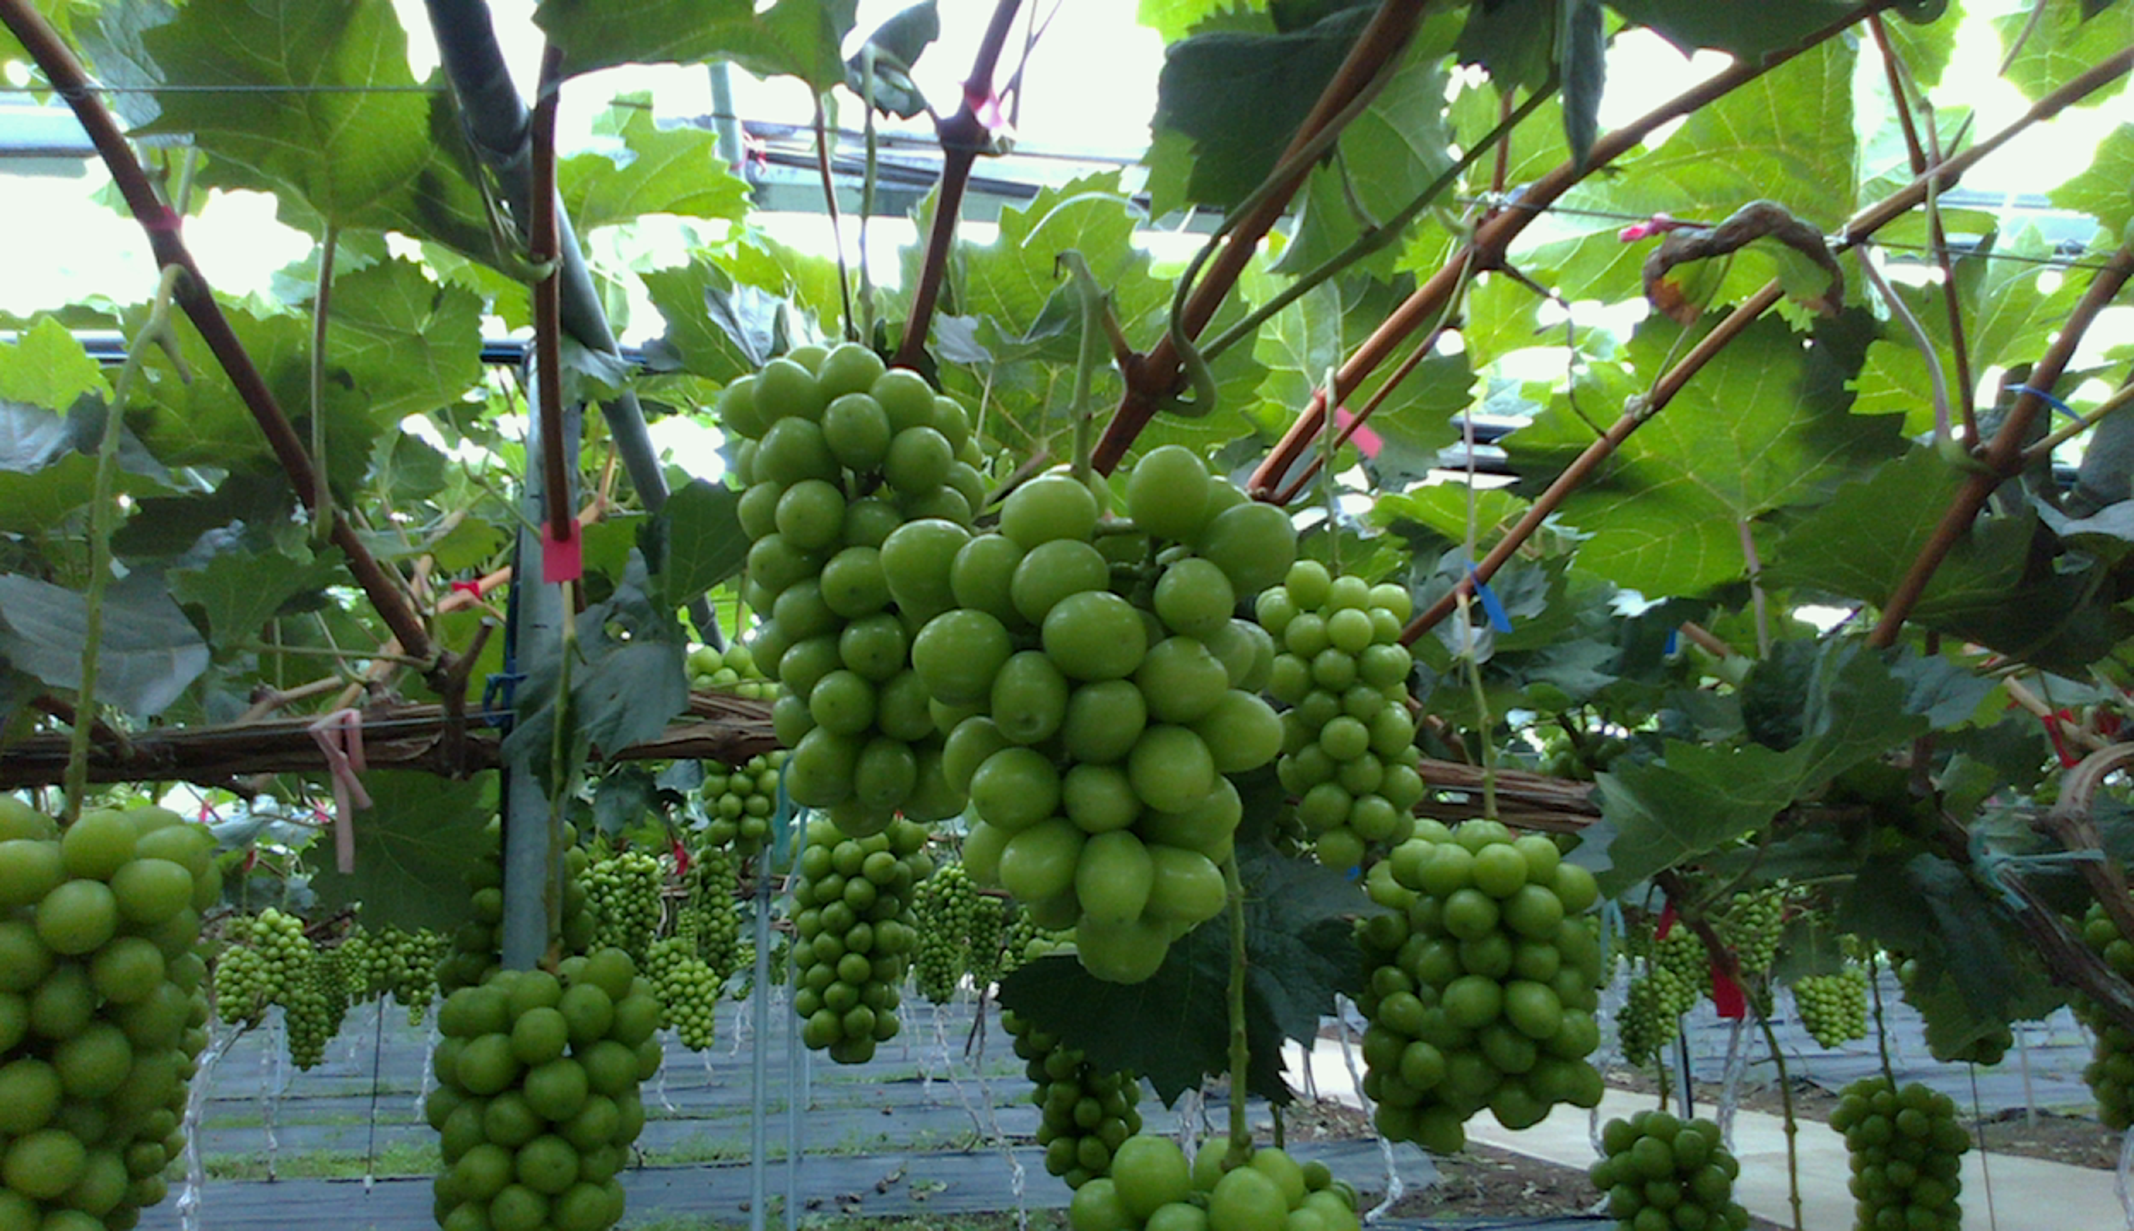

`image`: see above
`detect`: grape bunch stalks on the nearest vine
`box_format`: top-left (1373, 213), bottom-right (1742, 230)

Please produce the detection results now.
top-left (860, 44), bottom-right (908, 347)
top-left (1457, 598), bottom-right (1498, 817)
top-left (1323, 368), bottom-right (1341, 574)
top-left (55, 265), bottom-right (192, 831)
top-left (537, 581), bottom-right (590, 987)
top-left (1064, 256), bottom-right (1103, 486)
top-left (1221, 855), bottom-right (1252, 1171)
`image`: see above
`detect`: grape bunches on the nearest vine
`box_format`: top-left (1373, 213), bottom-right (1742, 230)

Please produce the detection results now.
top-left (0, 792), bottom-right (222, 1229)
top-left (1070, 1134), bottom-right (1363, 1229)
top-left (421, 947), bottom-right (667, 1229)
top-left (720, 342), bottom-right (988, 841)
top-left (875, 445), bottom-right (1300, 981)
top-left (1368, 817), bottom-right (1606, 1130)
top-left (1253, 557), bottom-right (1424, 872)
